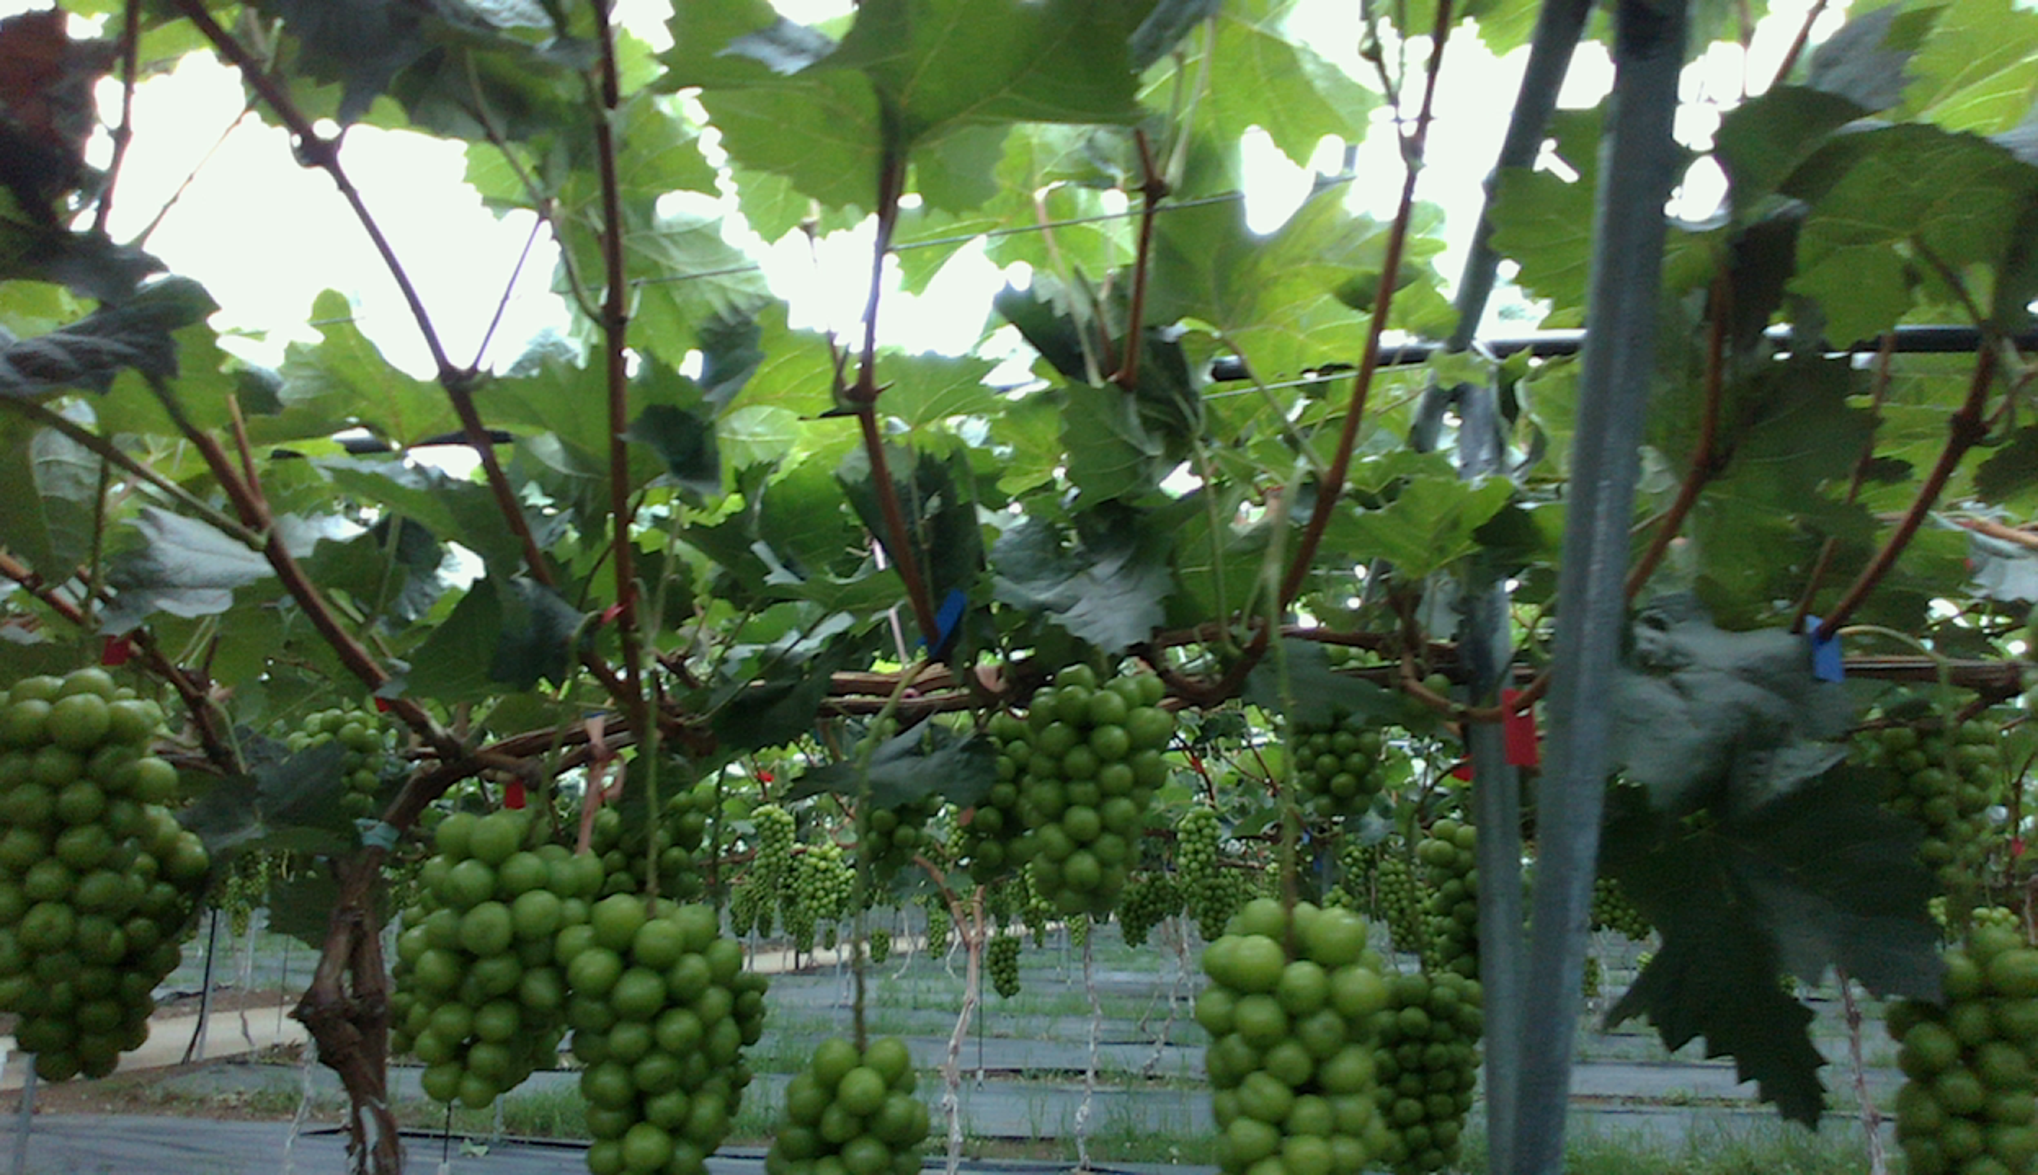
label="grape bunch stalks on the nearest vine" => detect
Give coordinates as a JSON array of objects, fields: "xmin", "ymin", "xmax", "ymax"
[
  {"xmin": 849, "ymin": 658, "xmax": 928, "ymax": 1064},
  {"xmin": 630, "ymin": 578, "xmax": 661, "ymax": 922},
  {"xmin": 521, "ymin": 609, "xmax": 601, "ymax": 850},
  {"xmin": 1840, "ymin": 623, "xmax": 1974, "ymax": 950},
  {"xmin": 1264, "ymin": 463, "xmax": 1324, "ymax": 964},
  {"xmin": 77, "ymin": 455, "xmax": 113, "ymax": 671}
]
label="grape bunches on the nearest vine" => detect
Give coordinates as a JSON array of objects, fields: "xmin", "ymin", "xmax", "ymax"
[
  {"xmin": 764, "ymin": 1035, "xmax": 928, "ymax": 1173},
  {"xmin": 1884, "ymin": 927, "xmax": 2036, "ymax": 1173},
  {"xmin": 2, "ymin": 669, "xmax": 207, "ymax": 1084},
  {"xmin": 555, "ymin": 893, "xmax": 768, "ymax": 1172},
  {"xmin": 1192, "ymin": 898, "xmax": 1395, "ymax": 1173},
  {"xmin": 1008, "ymin": 664, "xmax": 1173, "ymax": 914},
  {"xmin": 387, "ymin": 805, "xmax": 603, "ymax": 1111}
]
